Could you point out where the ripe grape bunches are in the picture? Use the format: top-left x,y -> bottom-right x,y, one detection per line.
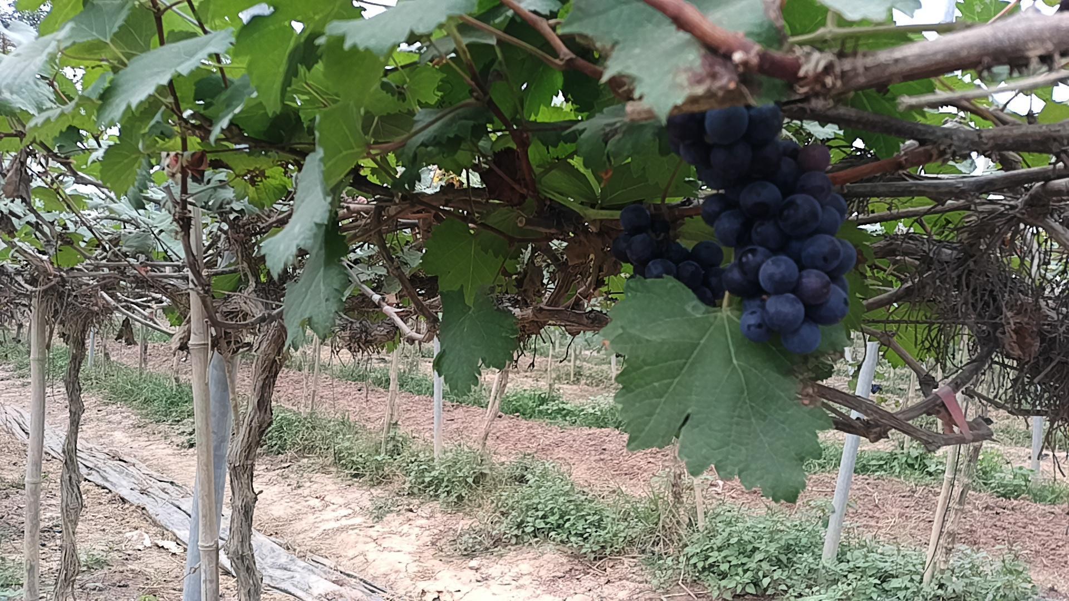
668,103 -> 857,353
612,204 -> 725,306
